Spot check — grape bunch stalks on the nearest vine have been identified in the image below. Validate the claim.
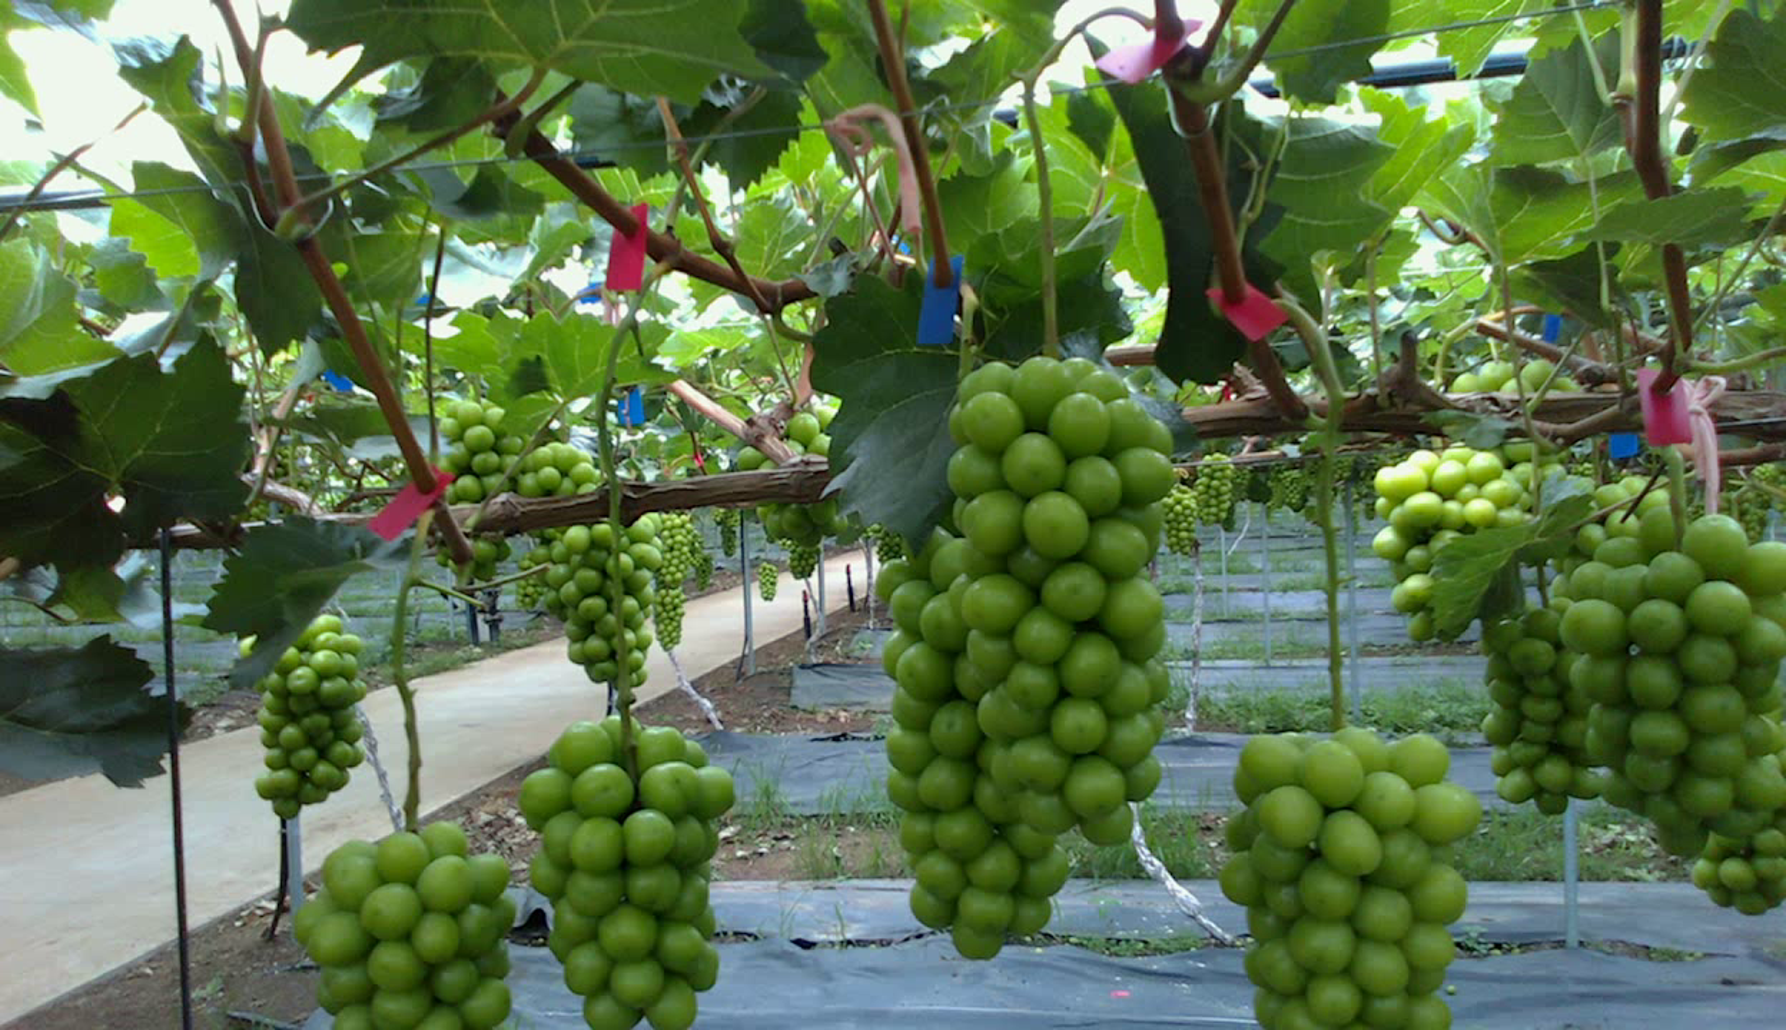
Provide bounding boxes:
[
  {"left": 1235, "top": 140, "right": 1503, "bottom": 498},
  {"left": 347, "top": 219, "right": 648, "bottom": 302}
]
[
  {"left": 594, "top": 263, "right": 673, "bottom": 814},
  {"left": 959, "top": 276, "right": 977, "bottom": 382},
  {"left": 1022, "top": 6, "right": 1155, "bottom": 358},
  {"left": 1272, "top": 298, "right": 1342, "bottom": 732},
  {"left": 1649, "top": 443, "right": 1687, "bottom": 554},
  {"left": 388, "top": 506, "right": 436, "bottom": 834}
]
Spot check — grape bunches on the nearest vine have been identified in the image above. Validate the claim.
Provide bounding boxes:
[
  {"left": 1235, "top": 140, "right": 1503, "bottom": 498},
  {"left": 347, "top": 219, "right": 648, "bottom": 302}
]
[
  {"left": 292, "top": 821, "right": 517, "bottom": 1029},
  {"left": 1219, "top": 725, "right": 1481, "bottom": 1029},
  {"left": 521, "top": 714, "right": 737, "bottom": 1029},
  {"left": 1481, "top": 608, "right": 1600, "bottom": 814},
  {"left": 873, "top": 526, "right": 1068, "bottom": 960},
  {"left": 1558, "top": 505, "right": 1785, "bottom": 857},
  {"left": 946, "top": 355, "right": 1175, "bottom": 847}
]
